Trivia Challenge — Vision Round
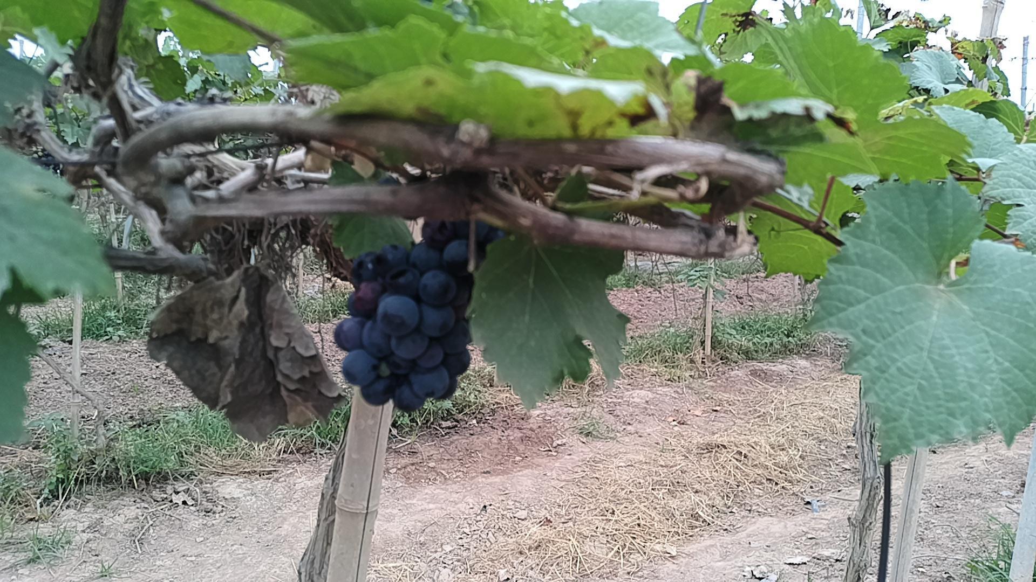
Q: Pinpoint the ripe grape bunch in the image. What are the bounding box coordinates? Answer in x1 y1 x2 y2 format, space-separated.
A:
334 219 503 412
